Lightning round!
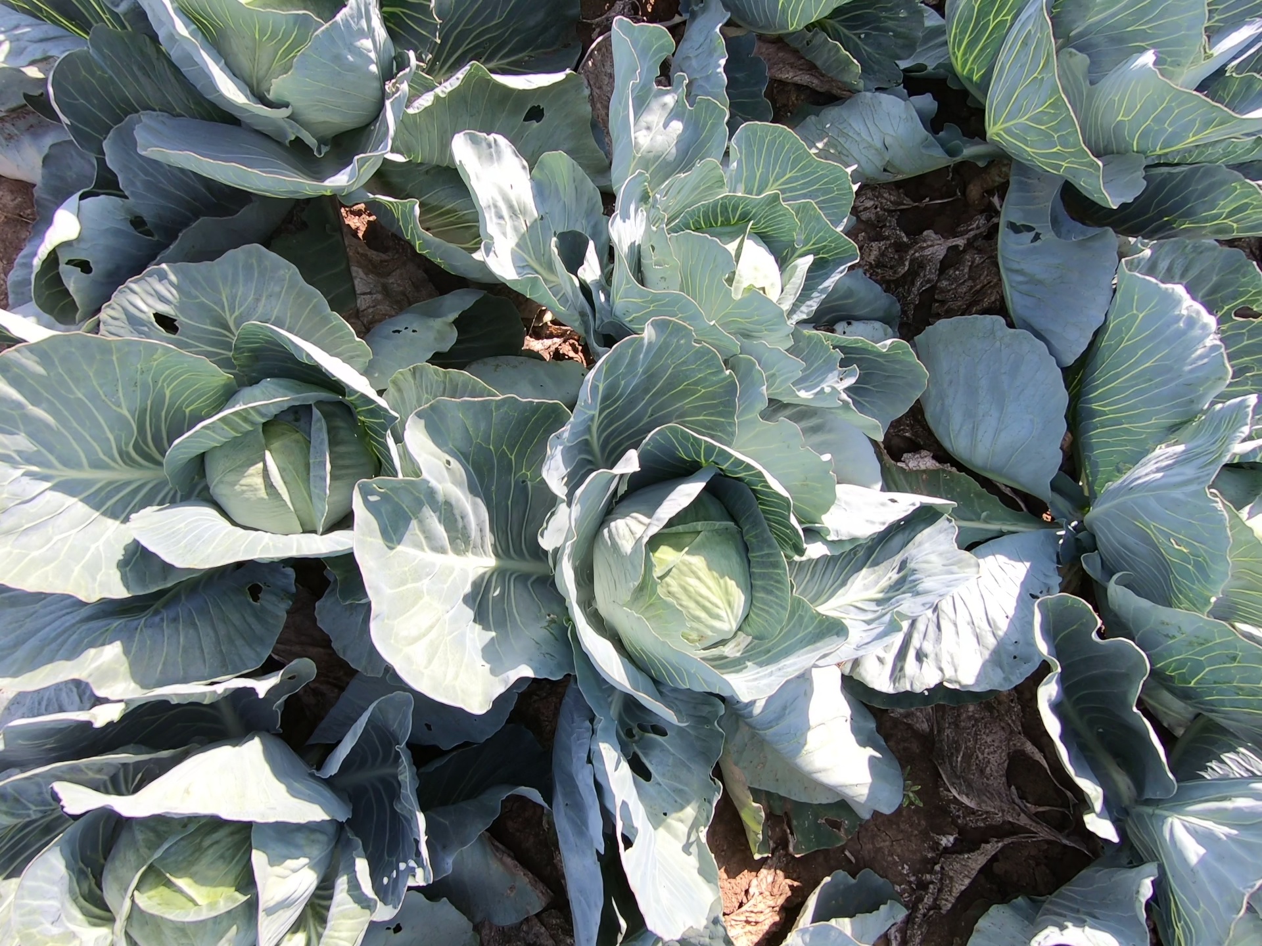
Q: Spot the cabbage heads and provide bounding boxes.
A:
[202,390,371,533]
[597,485,757,648]
[216,3,359,108]
[1147,467,1261,606]
[684,224,781,326]
[104,758,336,944]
